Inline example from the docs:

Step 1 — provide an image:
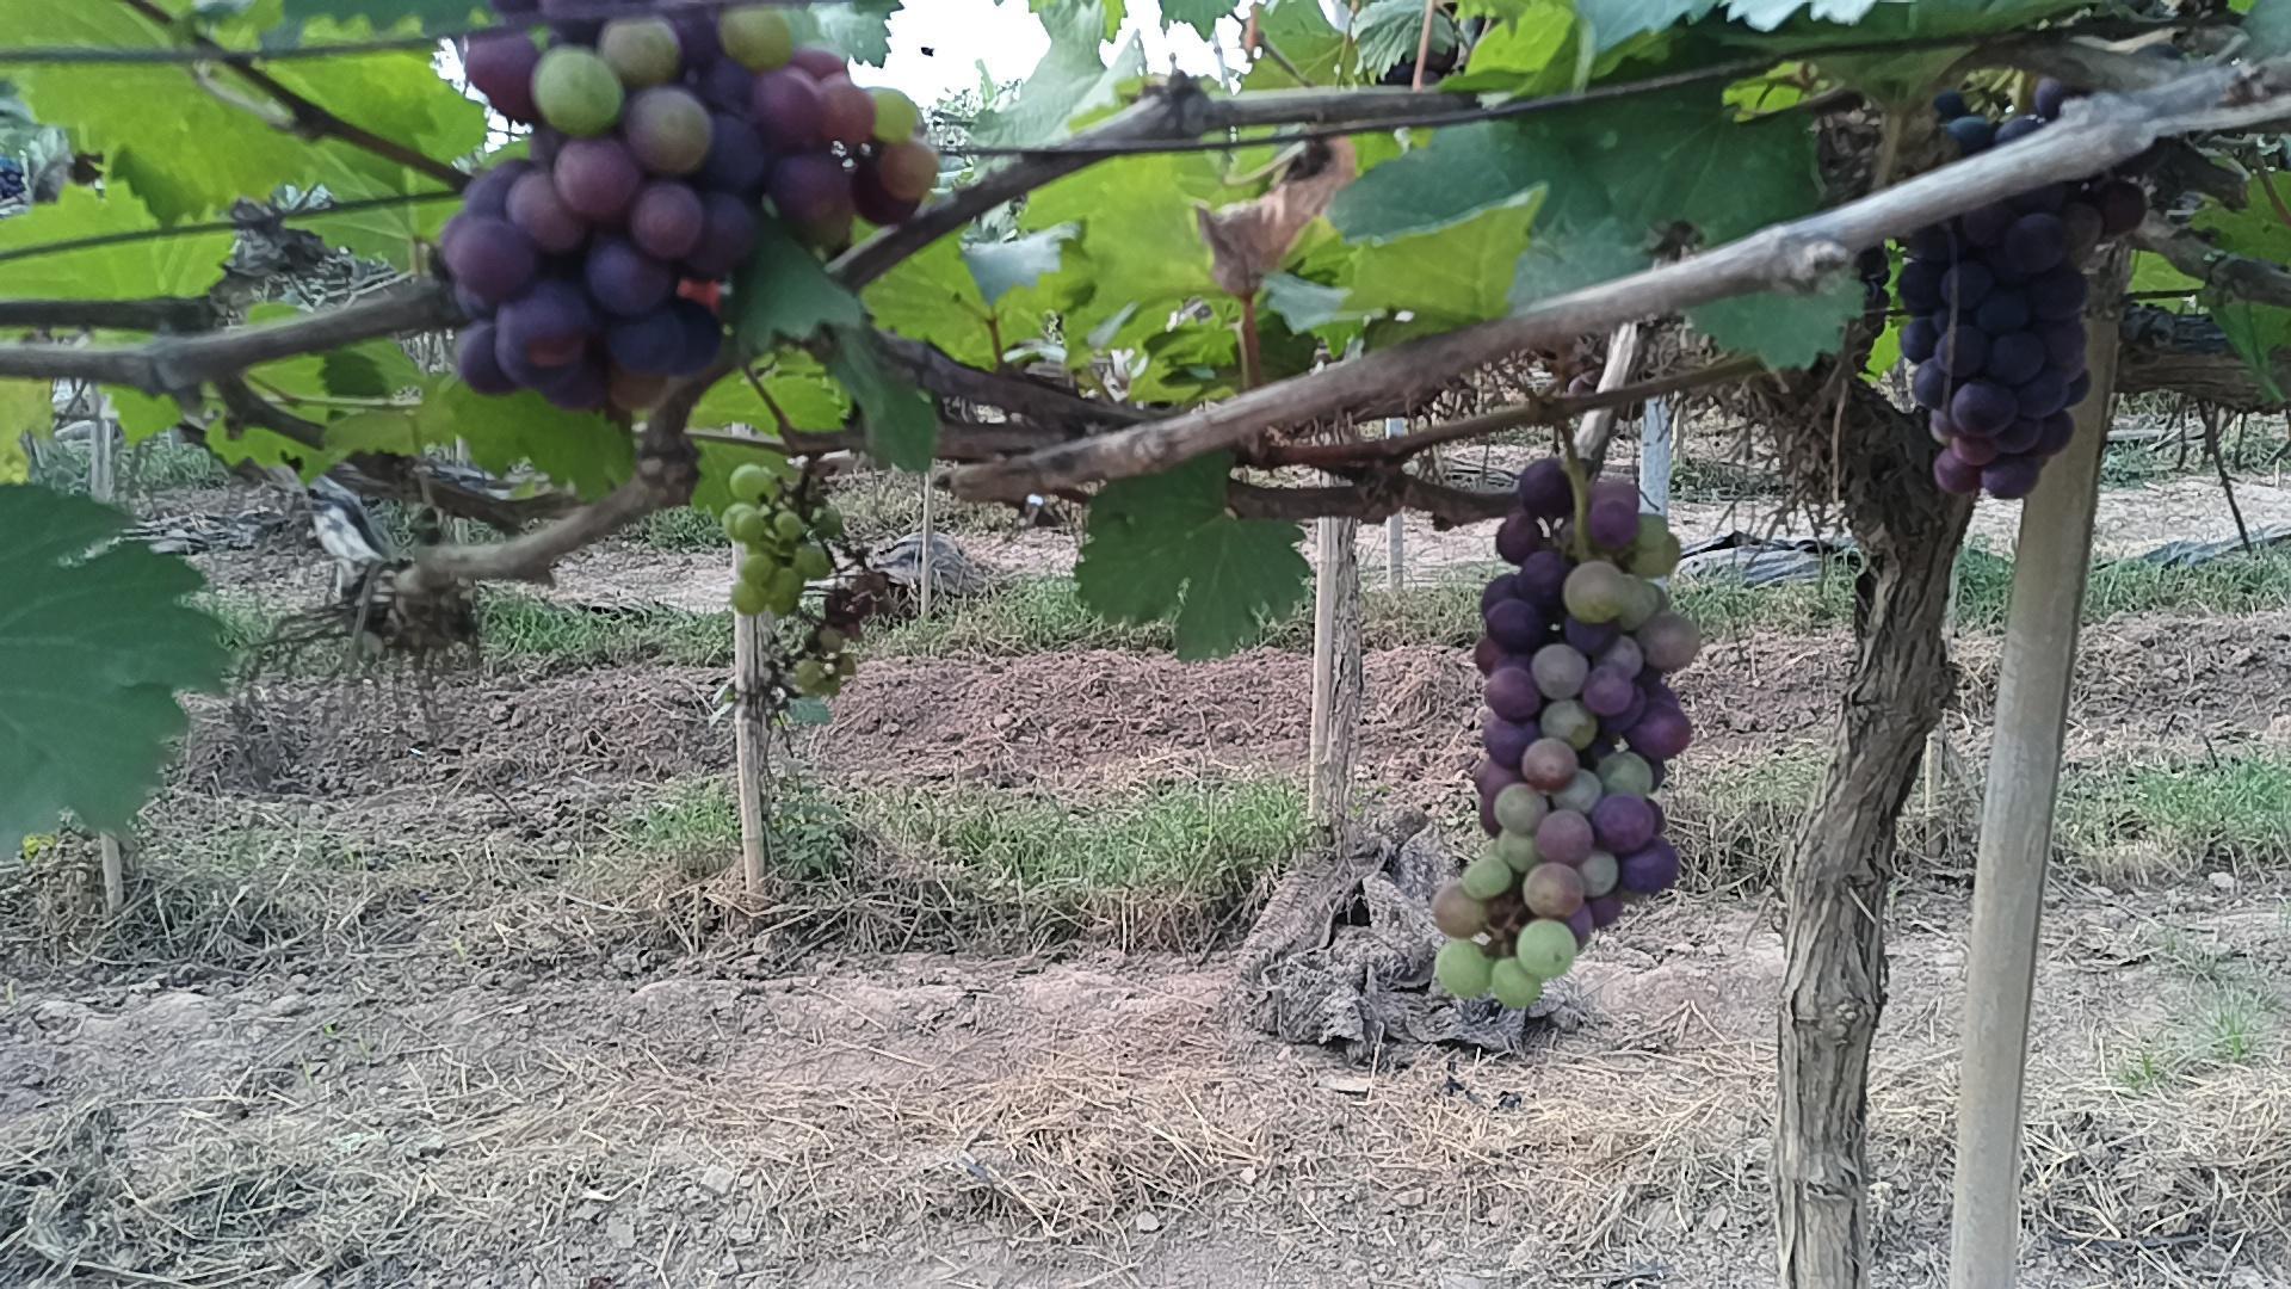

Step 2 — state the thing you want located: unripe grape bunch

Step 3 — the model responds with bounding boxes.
[721,463,844,618]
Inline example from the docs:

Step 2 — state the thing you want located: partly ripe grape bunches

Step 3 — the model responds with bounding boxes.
[1433,454,1700,1006]
[439,0,939,409]
[1897,75,2144,500]
[792,568,902,698]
